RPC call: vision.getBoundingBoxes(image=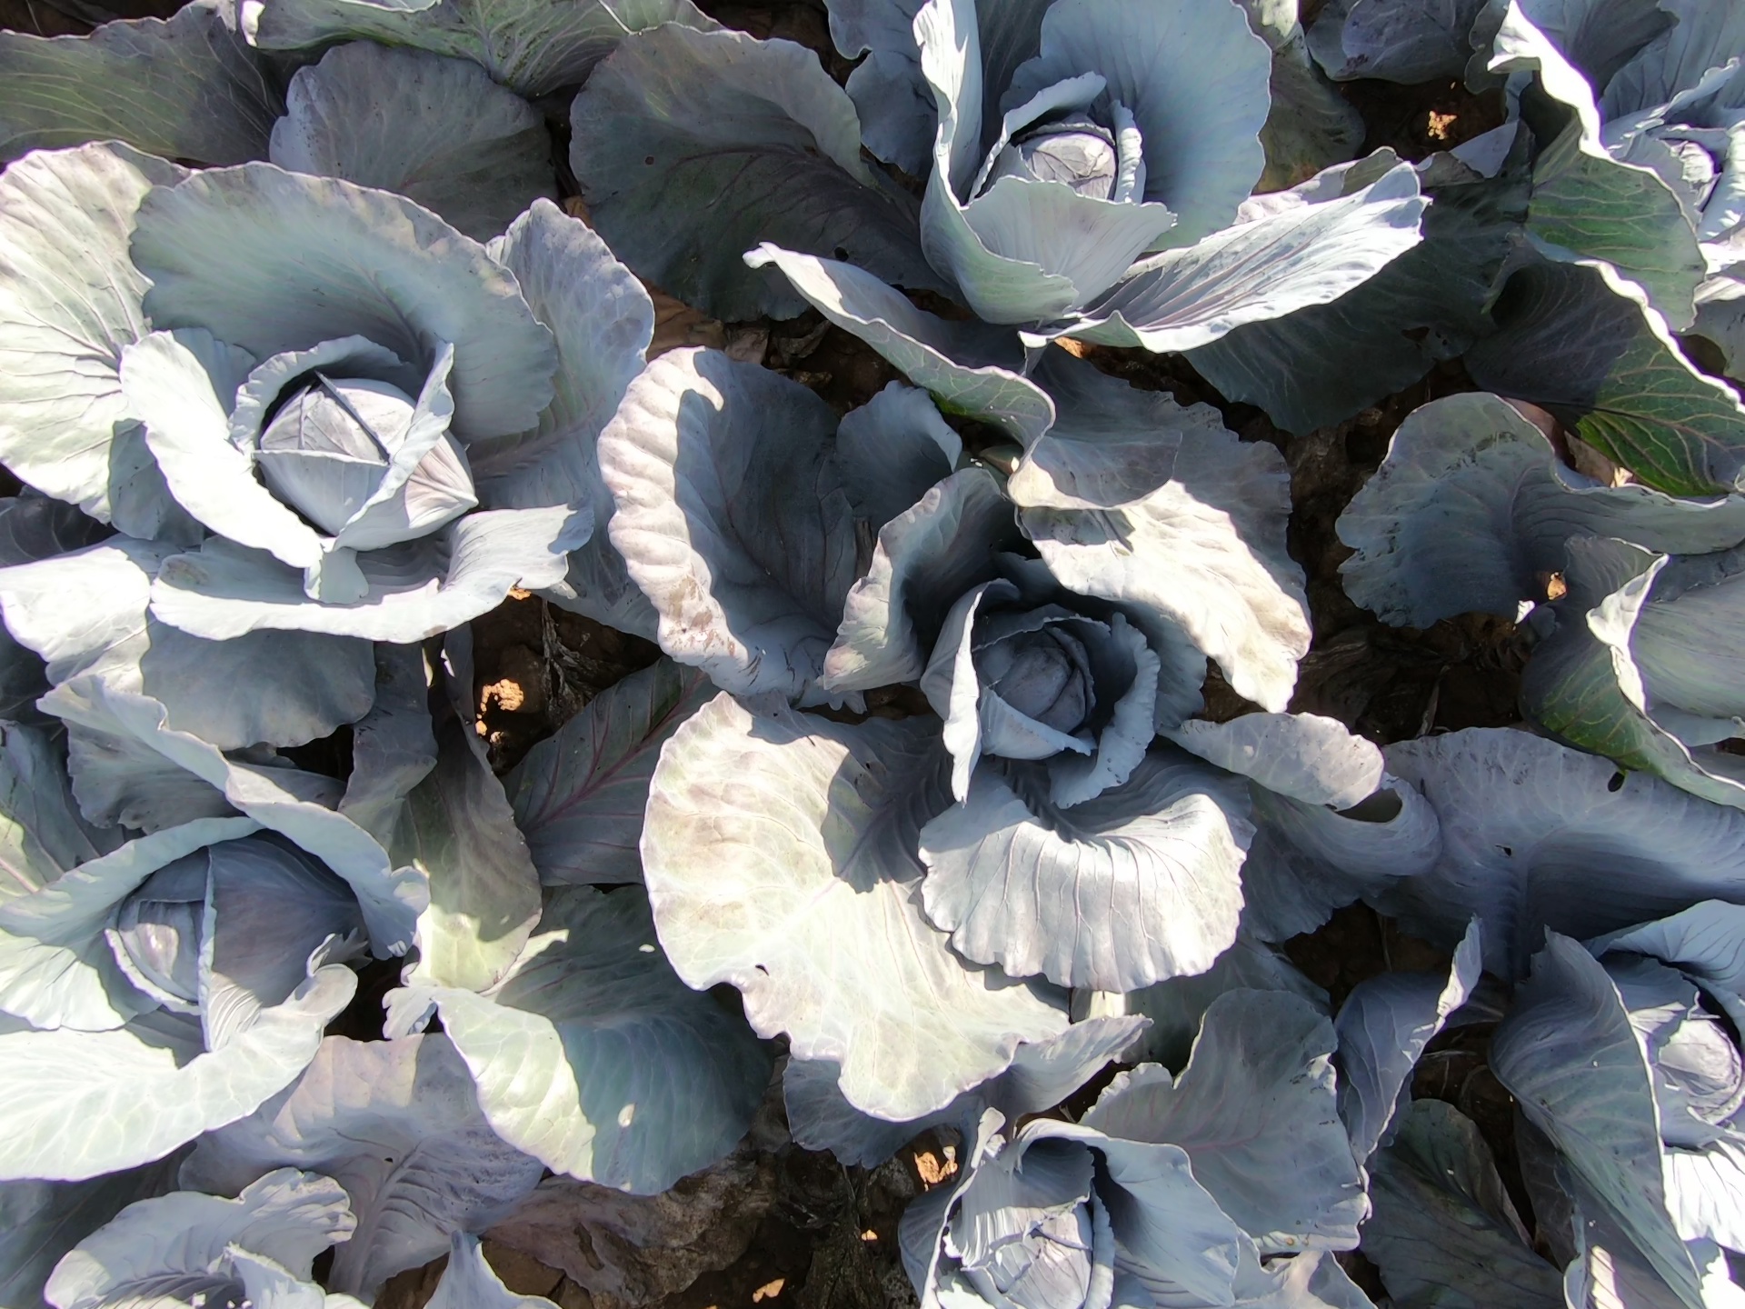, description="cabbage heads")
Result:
[118,834,316,1004]
[963,625,1086,757]
[1627,533,1739,709]
[260,376,449,522]
[1558,974,1739,1138]
[984,126,1123,271]
[962,1179,1100,1306]
[1611,121,1718,220]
